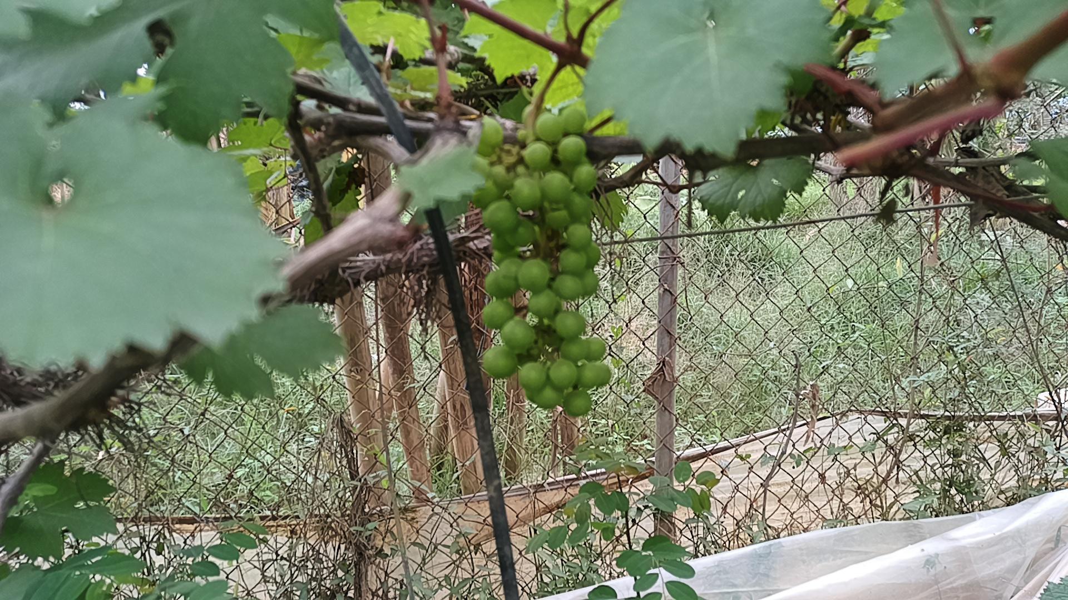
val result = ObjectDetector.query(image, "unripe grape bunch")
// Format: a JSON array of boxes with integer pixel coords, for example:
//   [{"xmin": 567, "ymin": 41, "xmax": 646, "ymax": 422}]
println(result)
[{"xmin": 473, "ymin": 104, "xmax": 611, "ymax": 416}]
